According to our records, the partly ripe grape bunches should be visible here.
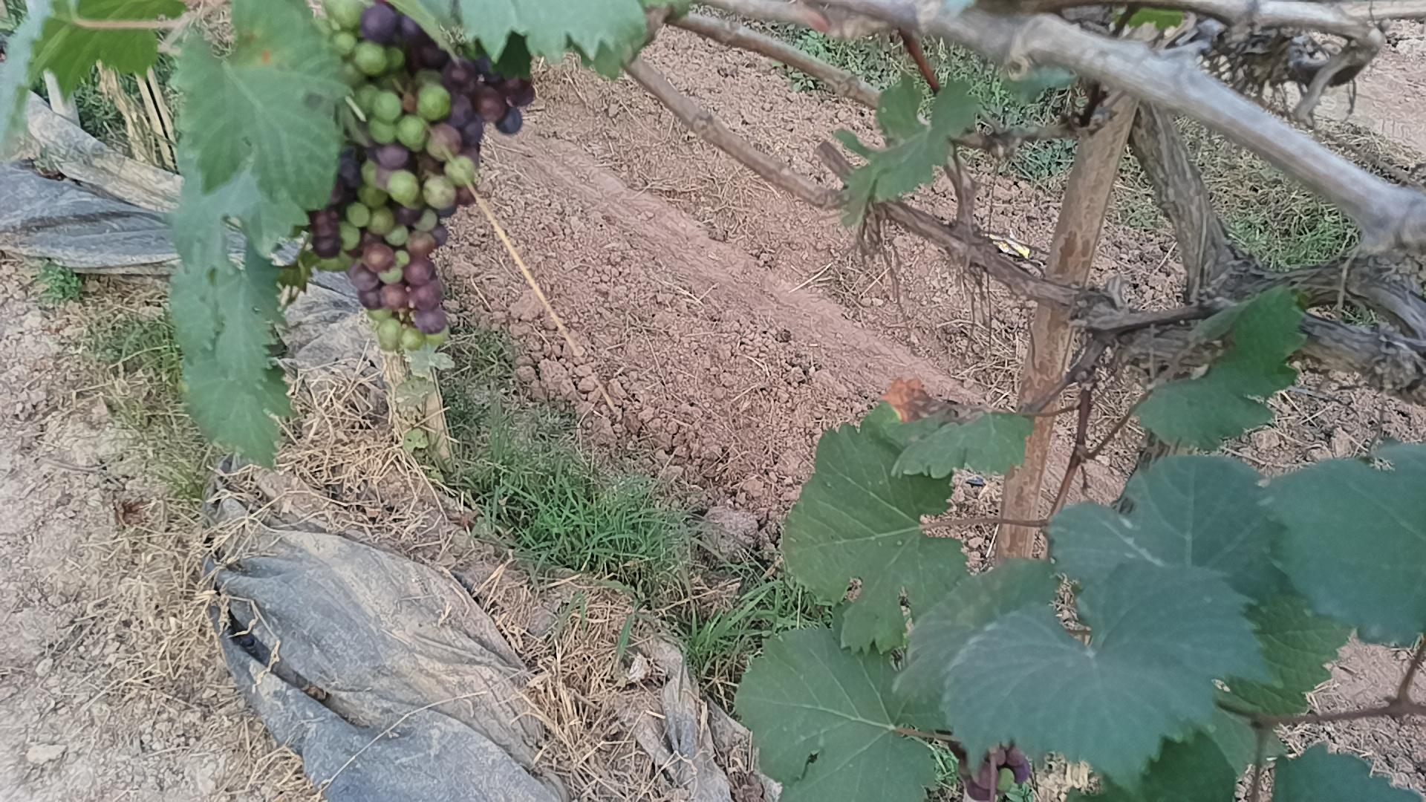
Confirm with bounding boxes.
[949,742,1031,801]
[310,0,534,350]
